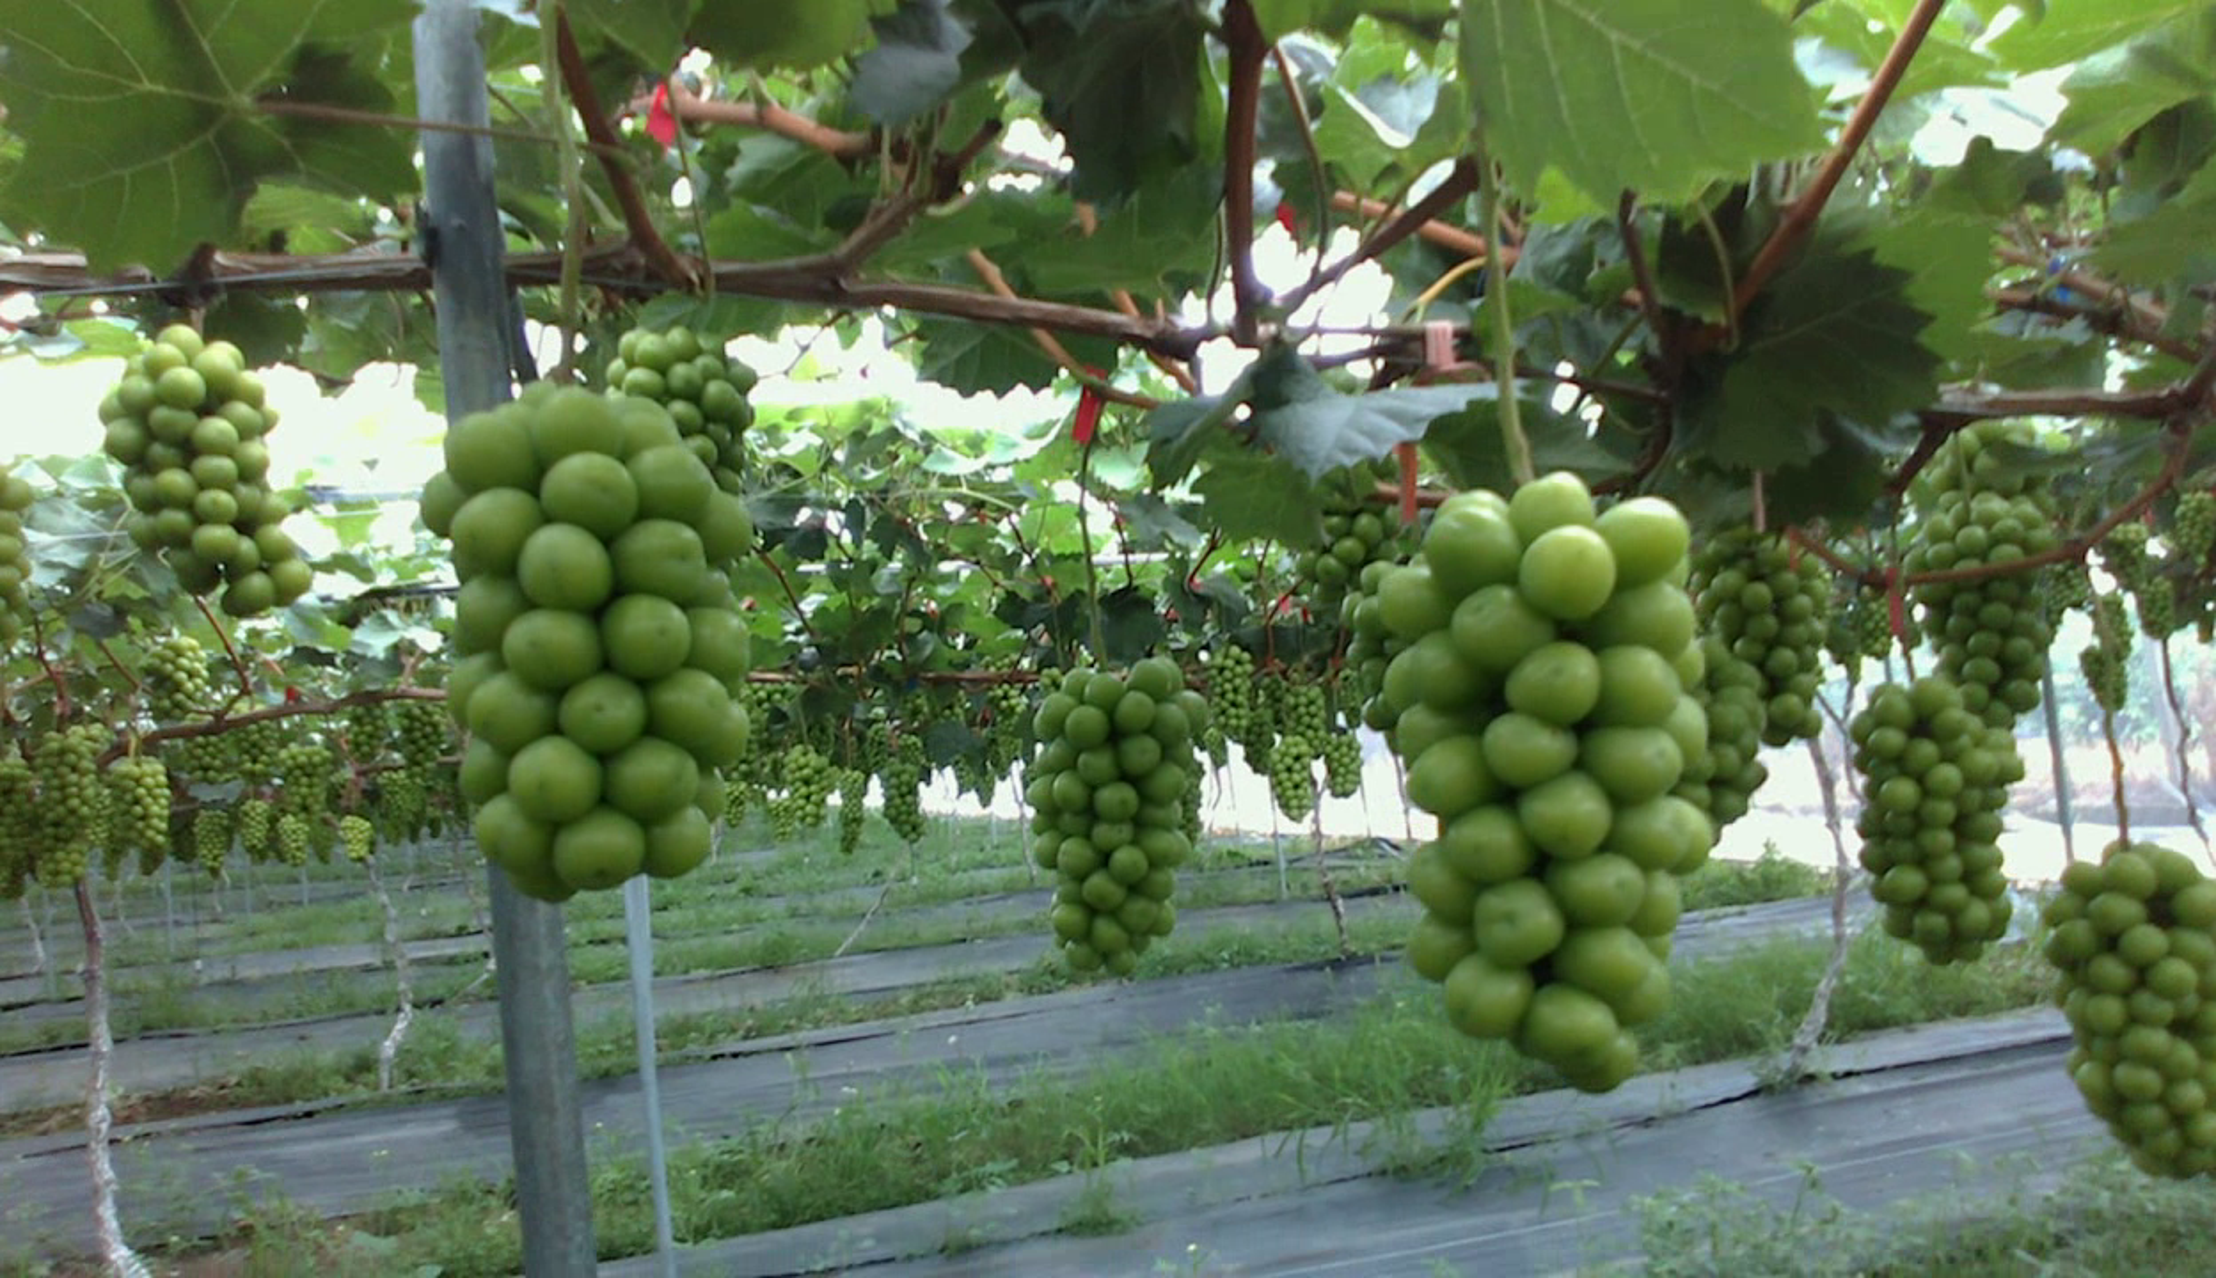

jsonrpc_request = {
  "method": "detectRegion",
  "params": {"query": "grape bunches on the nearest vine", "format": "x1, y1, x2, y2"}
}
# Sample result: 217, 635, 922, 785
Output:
1376, 469, 1715, 1092
417, 383, 756, 903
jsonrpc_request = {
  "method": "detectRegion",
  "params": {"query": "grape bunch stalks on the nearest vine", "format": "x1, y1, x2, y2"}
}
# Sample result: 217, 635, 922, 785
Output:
1476, 114, 1532, 490
540, 2, 586, 383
